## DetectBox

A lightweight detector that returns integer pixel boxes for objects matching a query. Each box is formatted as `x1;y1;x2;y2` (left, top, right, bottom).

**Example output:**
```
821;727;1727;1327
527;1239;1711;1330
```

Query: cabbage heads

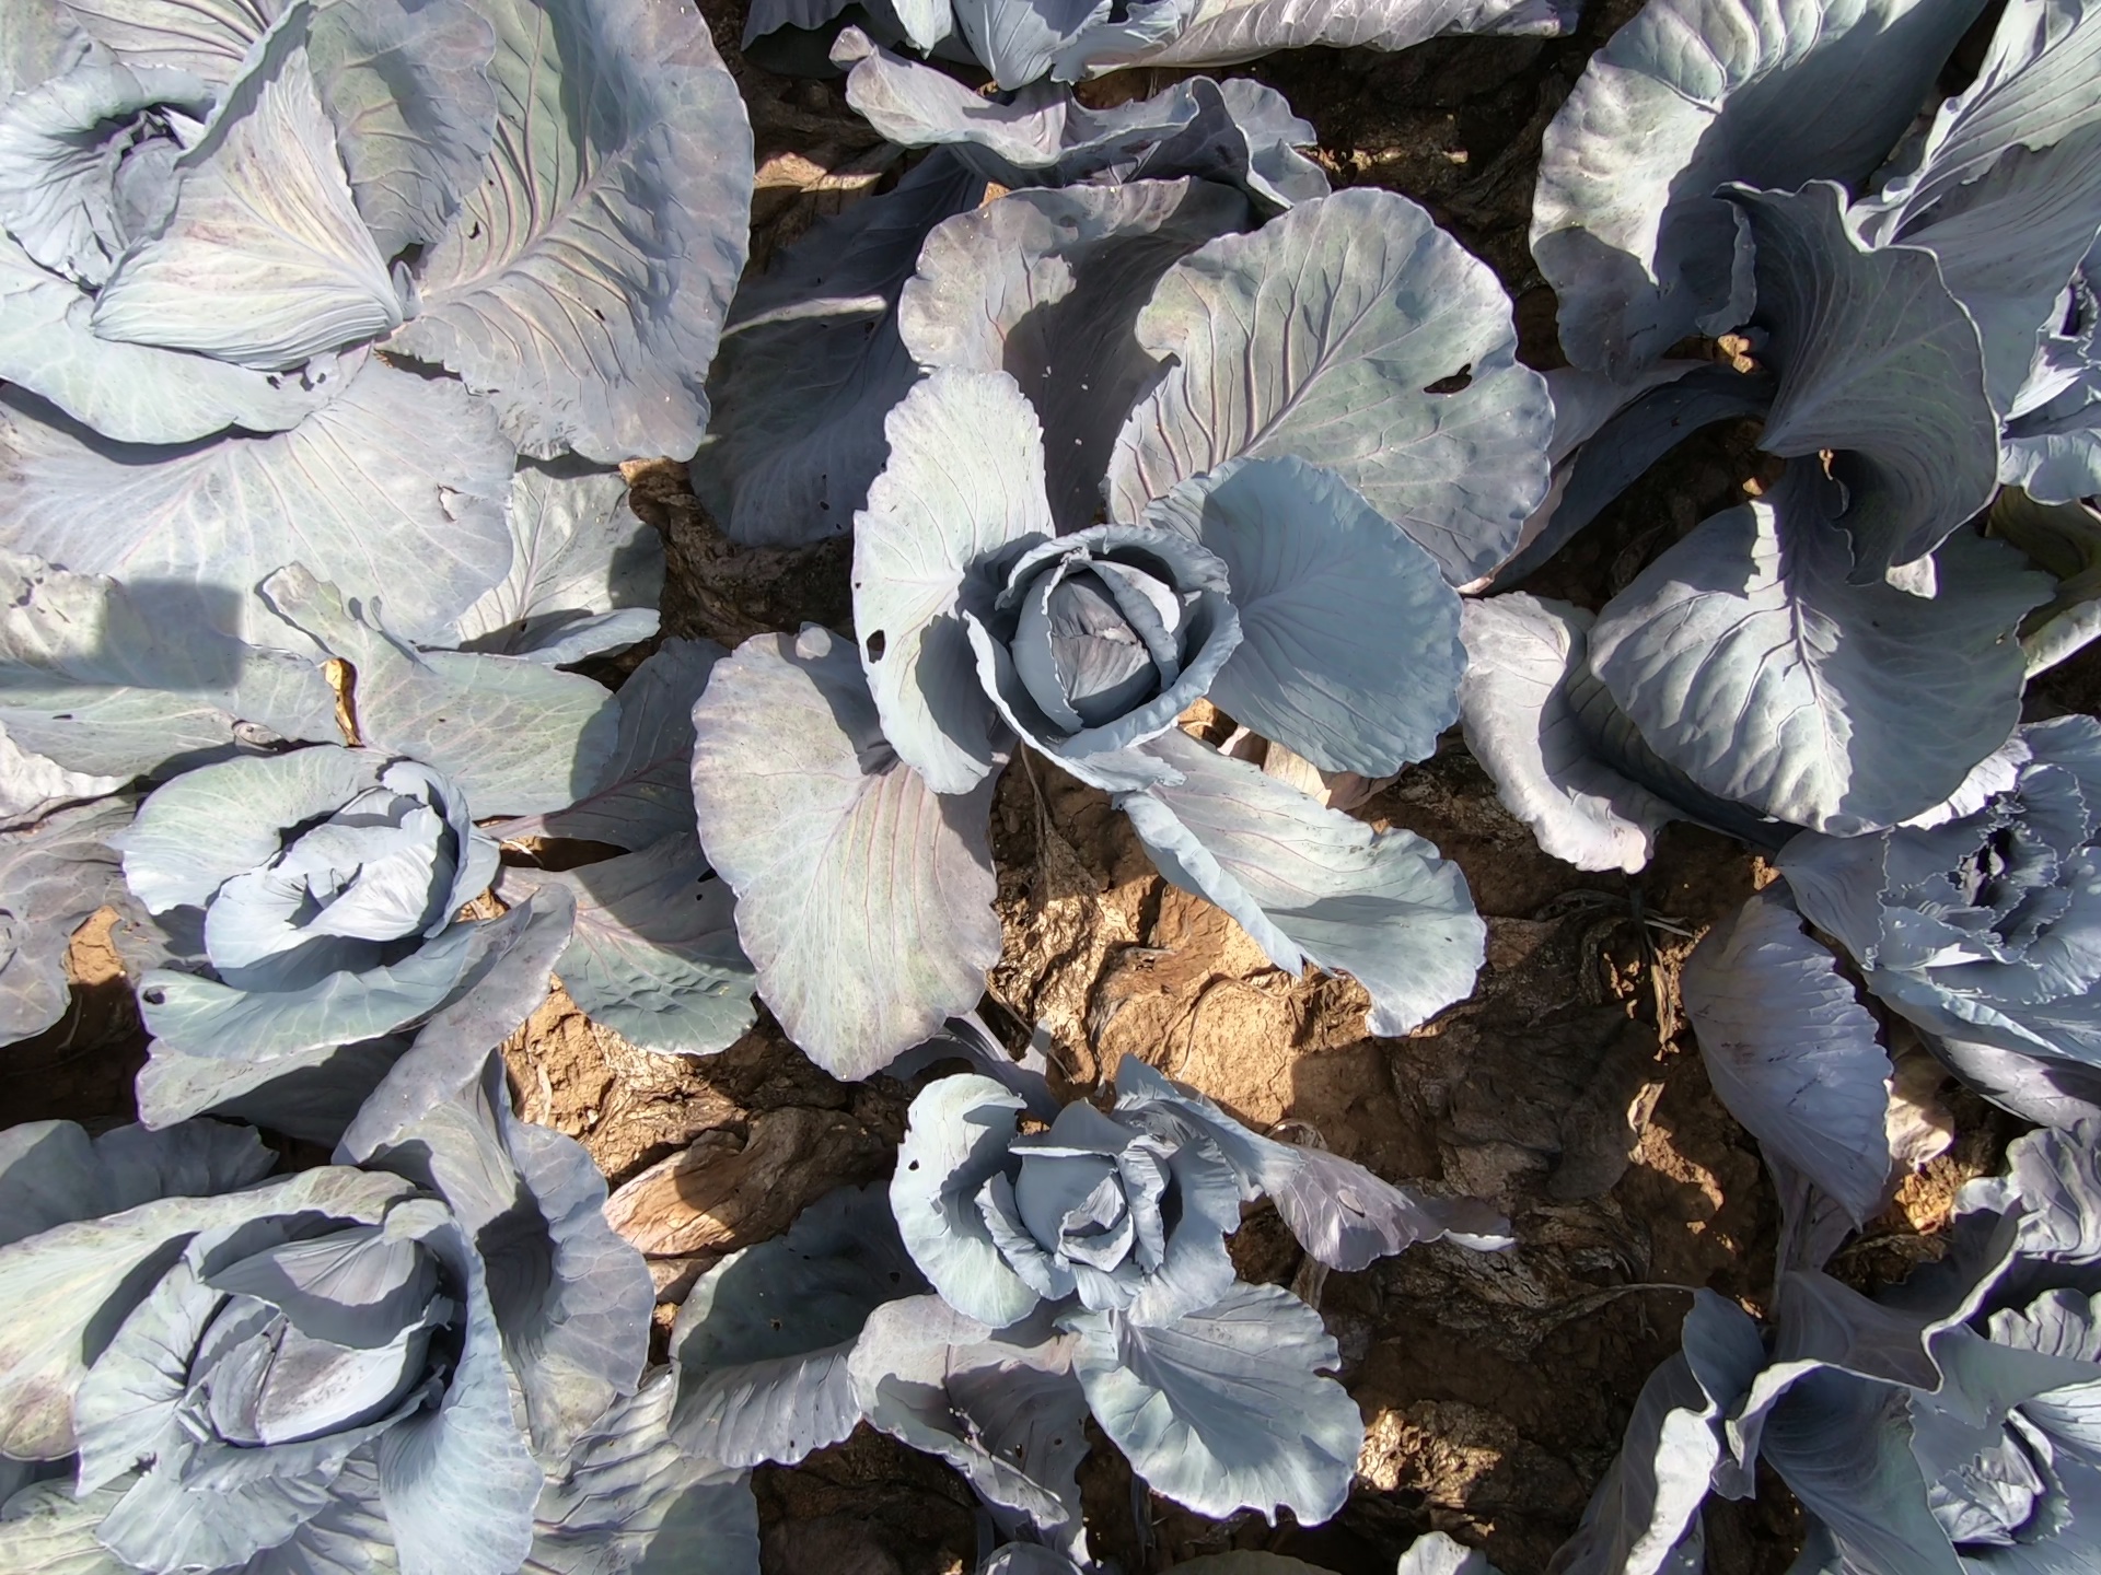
188;1240;440;1458
1862;1378;2045;1547
104;137;267;310
1018;1151;1134;1264
1850;827;1997;947
1018;559;1188;725
1877;235;2092;417
304;787;445;936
